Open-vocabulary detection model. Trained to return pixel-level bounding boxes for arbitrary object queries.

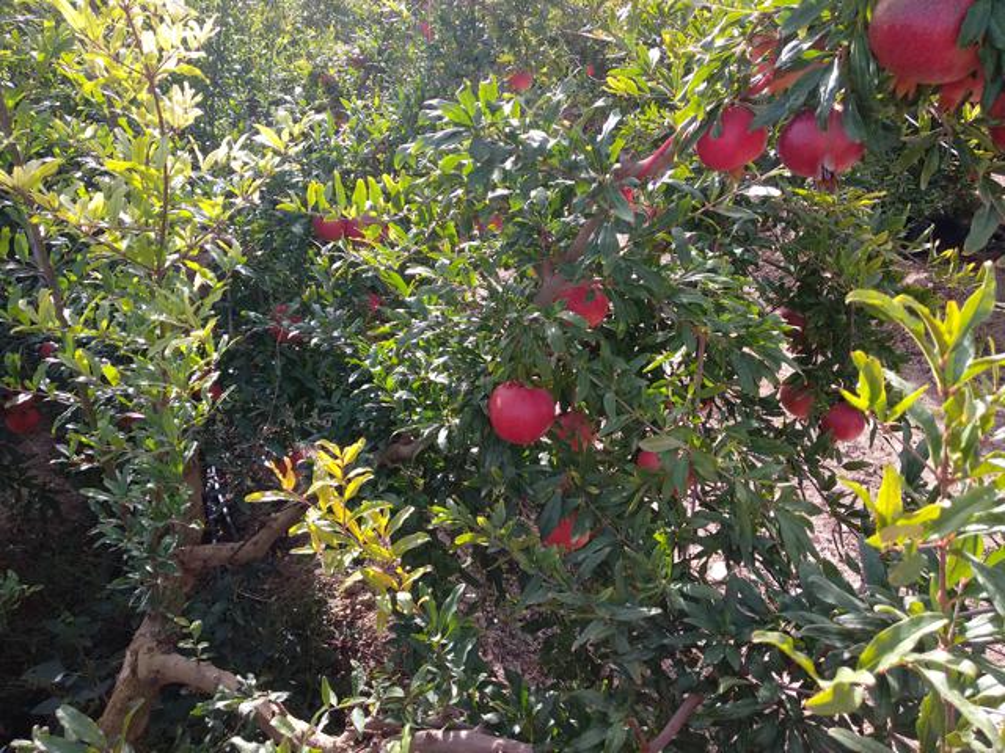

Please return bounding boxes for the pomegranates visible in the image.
[551,284,608,328]
[543,510,590,551]
[867,0,981,100]
[697,104,769,182]
[777,107,864,190]
[933,63,1005,151]
[487,380,556,444]
[342,218,364,237]
[638,449,661,466]
[311,216,349,242]
[554,411,597,452]
[821,400,867,442]
[3,402,41,435]
[780,381,812,416]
